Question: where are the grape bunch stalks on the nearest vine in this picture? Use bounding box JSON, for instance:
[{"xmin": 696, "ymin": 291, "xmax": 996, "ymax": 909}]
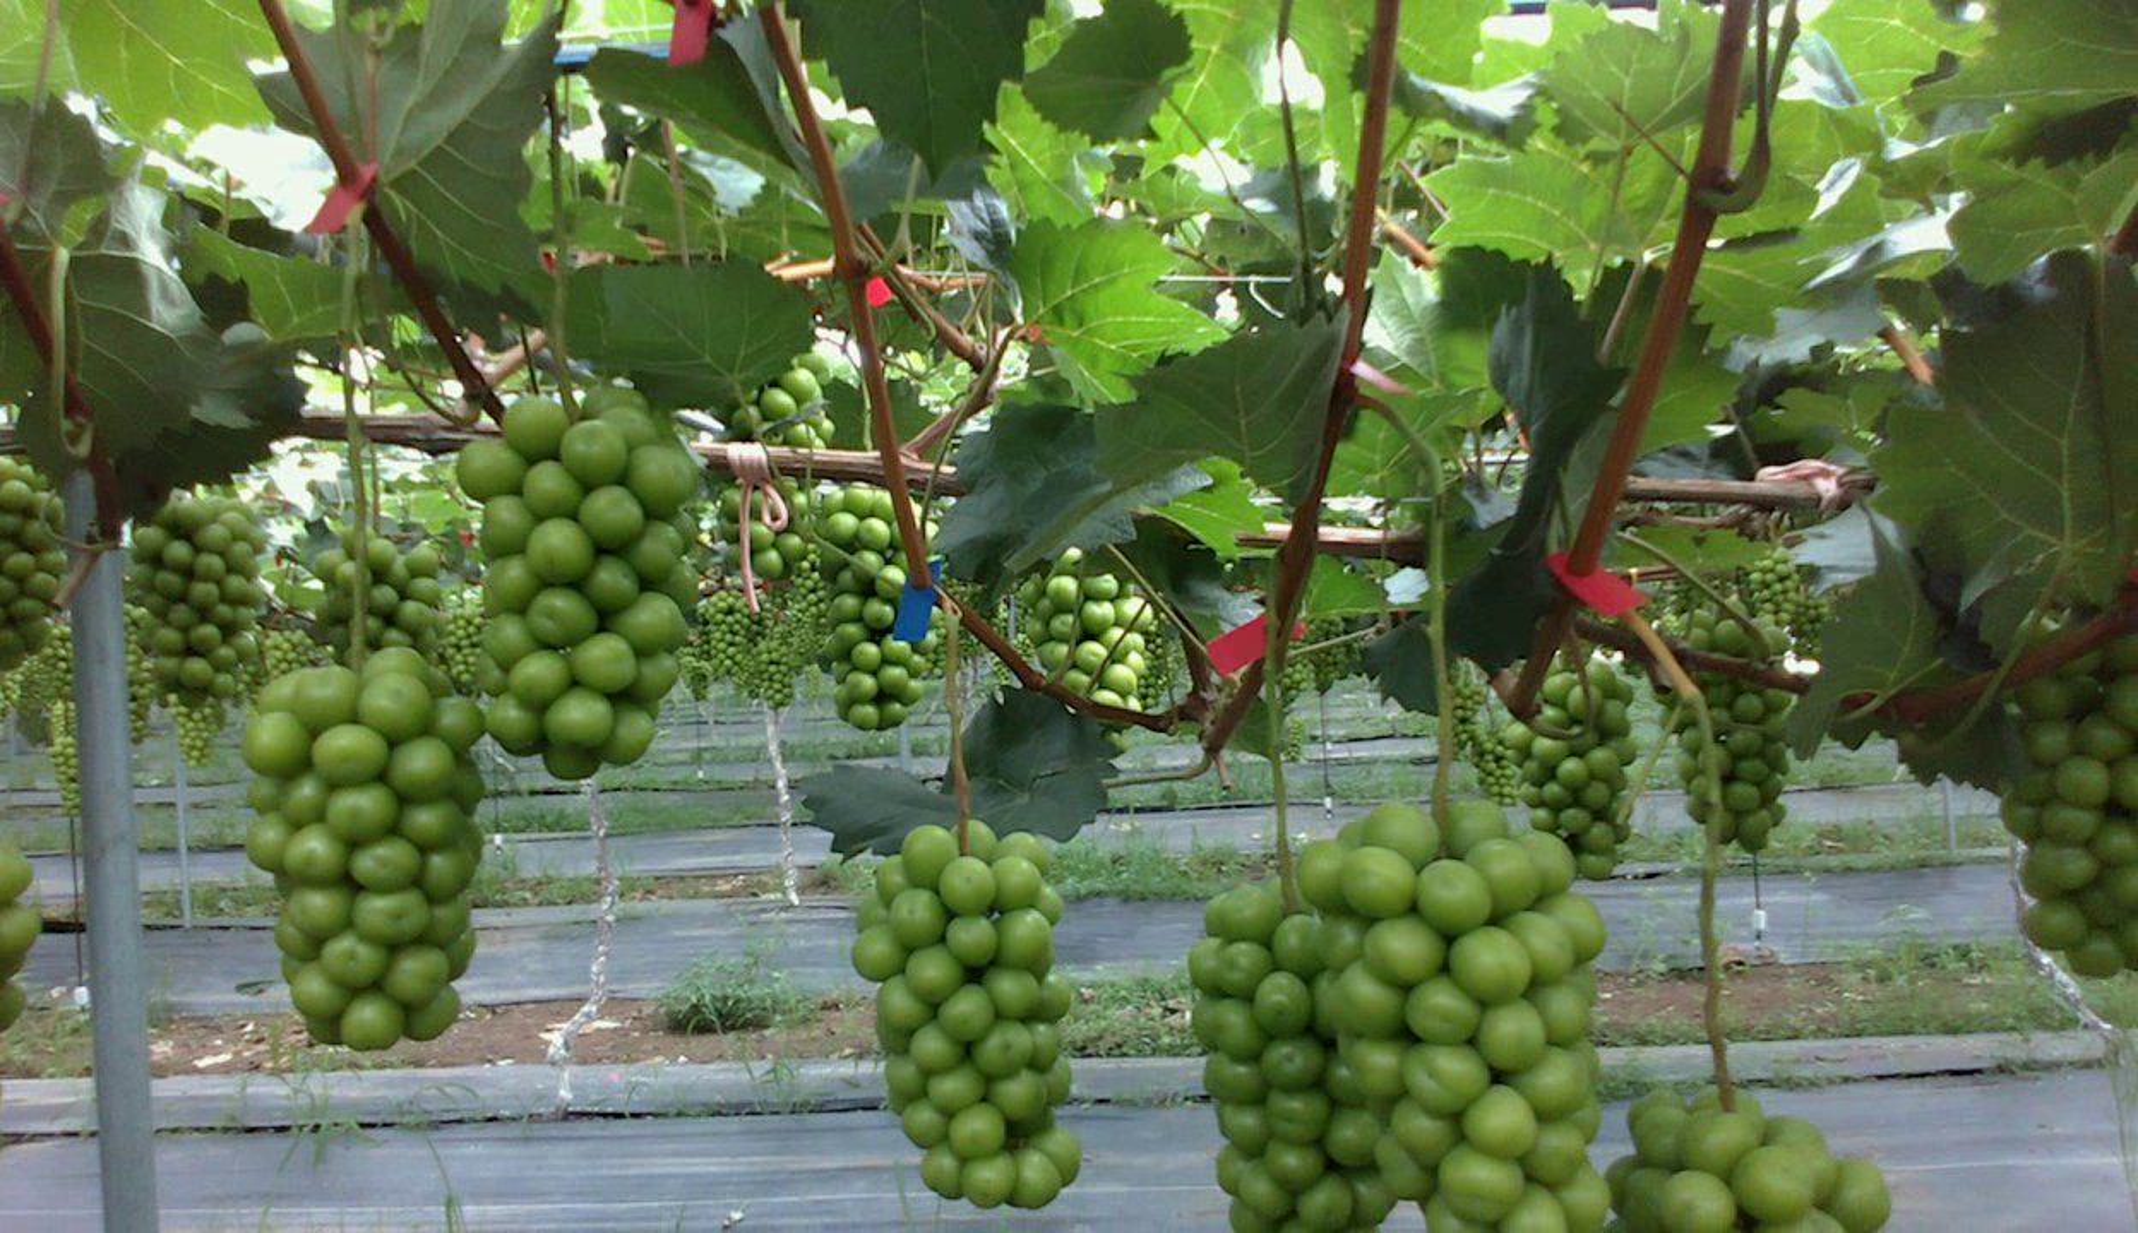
[
  {"xmin": 546, "ymin": 84, "xmax": 582, "ymax": 425},
  {"xmin": 1357, "ymin": 394, "xmax": 1454, "ymax": 858},
  {"xmin": 1263, "ymin": 545, "xmax": 1300, "ymax": 916},
  {"xmin": 939, "ymin": 596, "xmax": 971, "ymax": 856},
  {"xmin": 1626, "ymin": 610, "xmax": 1737, "ymax": 1113},
  {"xmin": 337, "ymin": 202, "xmax": 367, "ymax": 676}
]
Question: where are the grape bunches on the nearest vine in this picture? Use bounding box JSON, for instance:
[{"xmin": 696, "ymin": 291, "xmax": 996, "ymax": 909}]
[
  {"xmin": 1603, "ymin": 1084, "xmax": 1890, "ymax": 1231},
  {"xmin": 1297, "ymin": 798, "xmax": 1609, "ymax": 1231},
  {"xmin": 240, "ymin": 646, "xmax": 487, "ymax": 1053},
  {"xmin": 454, "ymin": 384, "xmax": 702, "ymax": 779},
  {"xmin": 850, "ymin": 819, "xmax": 1081, "ymax": 1212},
  {"xmin": 1187, "ymin": 873, "xmax": 1398, "ymax": 1231}
]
